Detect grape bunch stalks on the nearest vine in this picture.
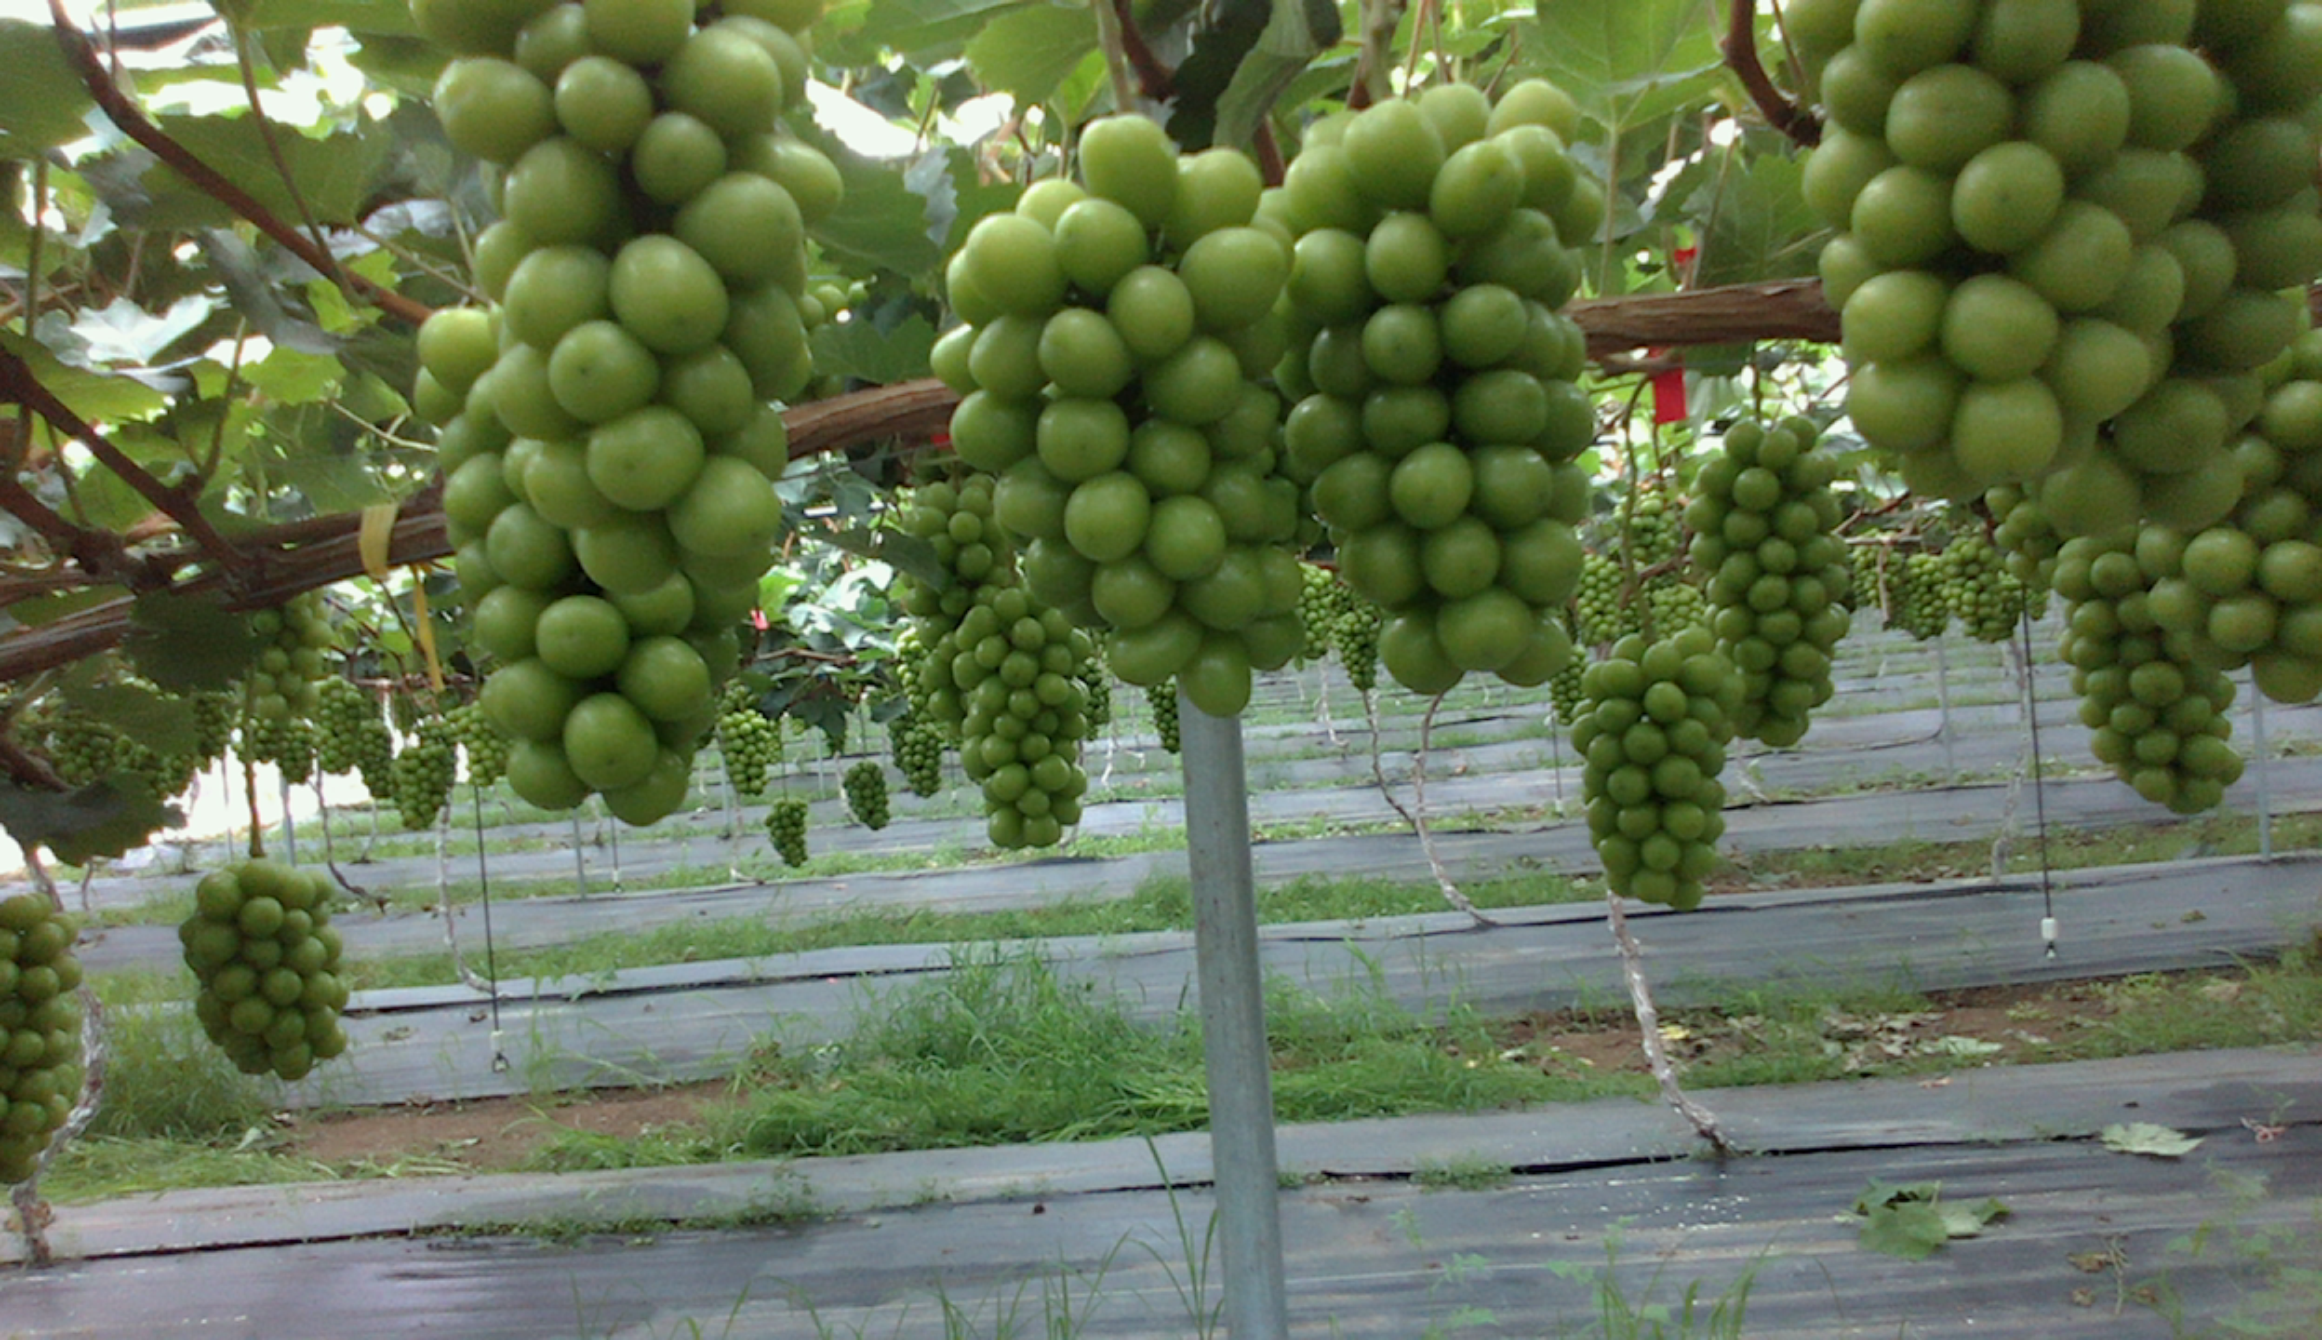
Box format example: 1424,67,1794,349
1362,0,1412,106
1096,6,1141,117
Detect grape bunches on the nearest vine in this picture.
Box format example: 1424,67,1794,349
932,115,1301,717
1781,0,2222,502
1261,78,1600,694
415,305,763,826
2039,0,2320,536
413,0,841,594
